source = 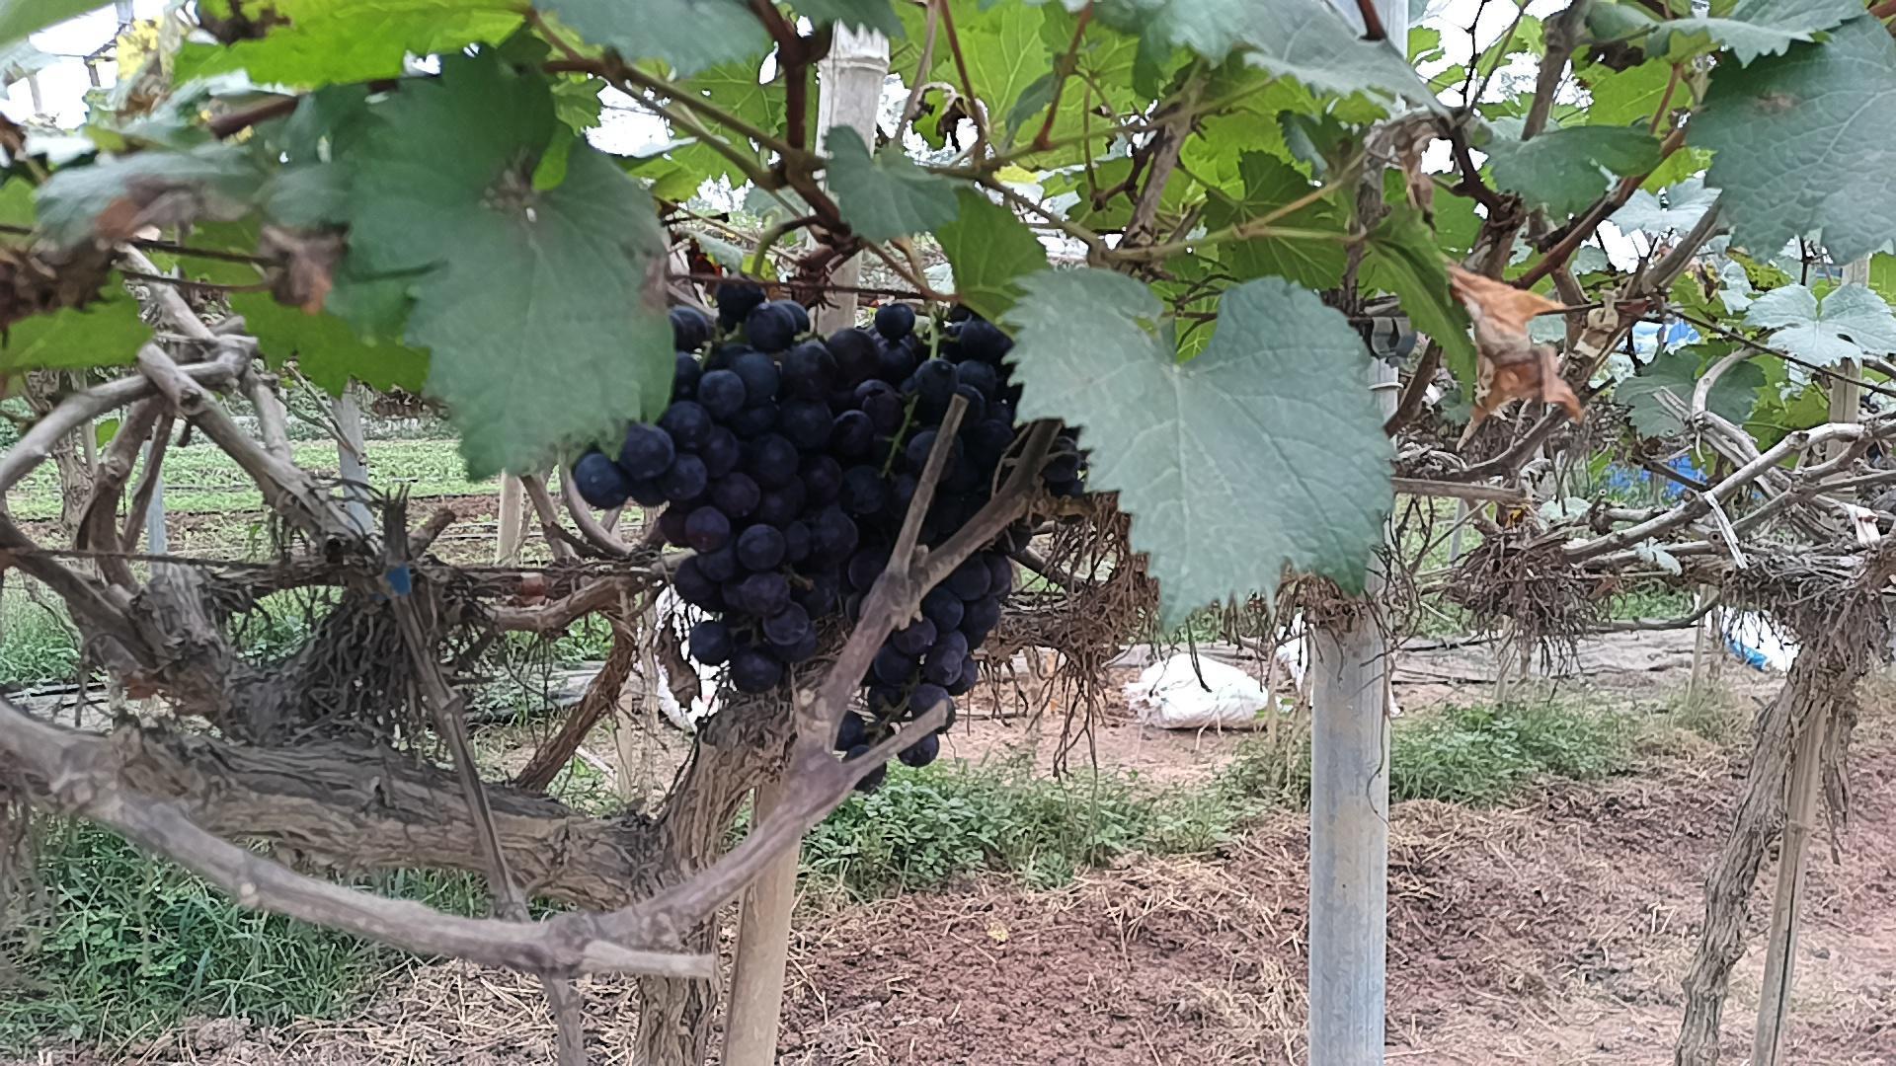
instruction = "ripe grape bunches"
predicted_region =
[827,304,1082,791]
[575,282,857,693]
